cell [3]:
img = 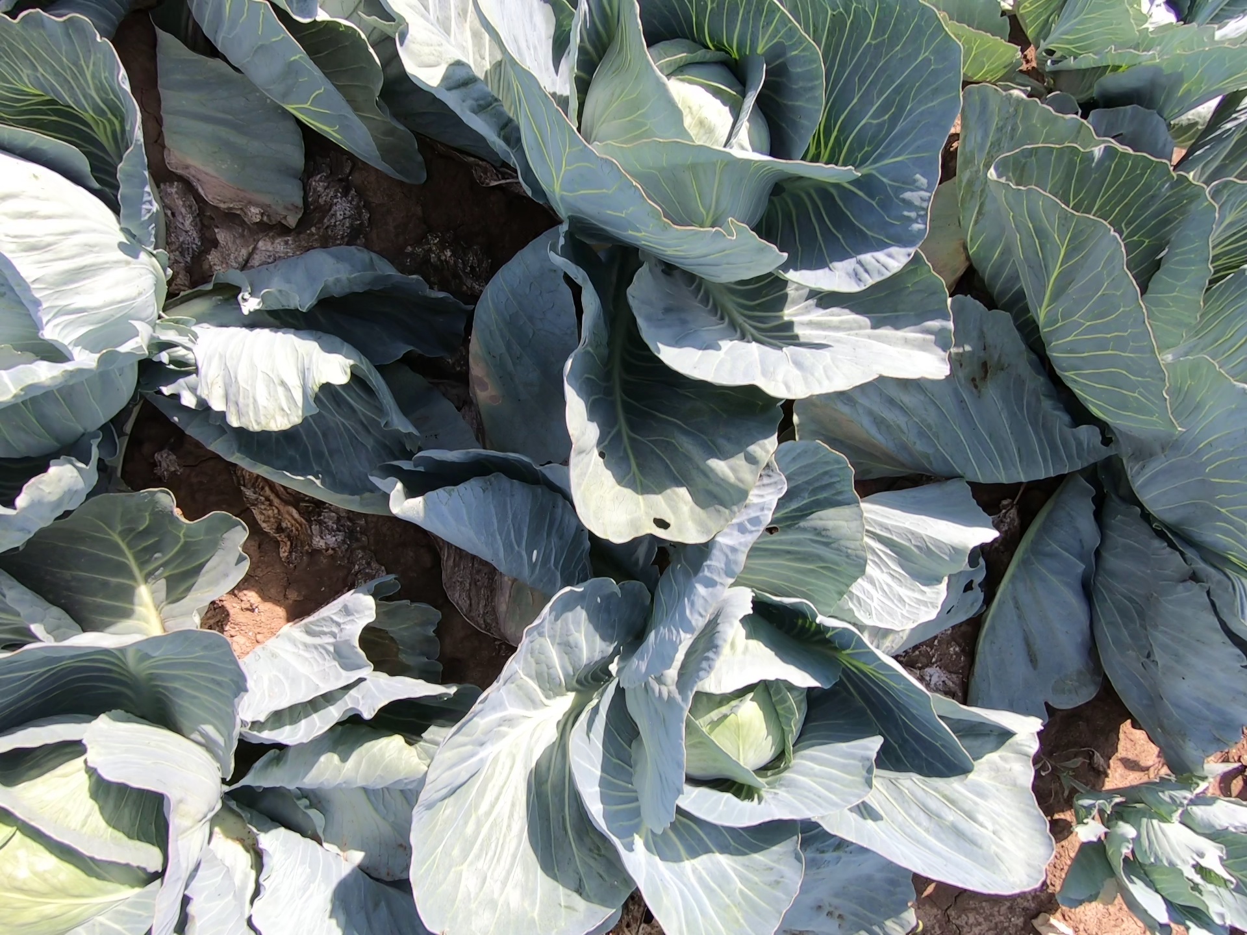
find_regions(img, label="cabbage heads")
[2,206,138,407]
[601,53,768,231]
[0,726,181,934]
[662,621,807,779]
